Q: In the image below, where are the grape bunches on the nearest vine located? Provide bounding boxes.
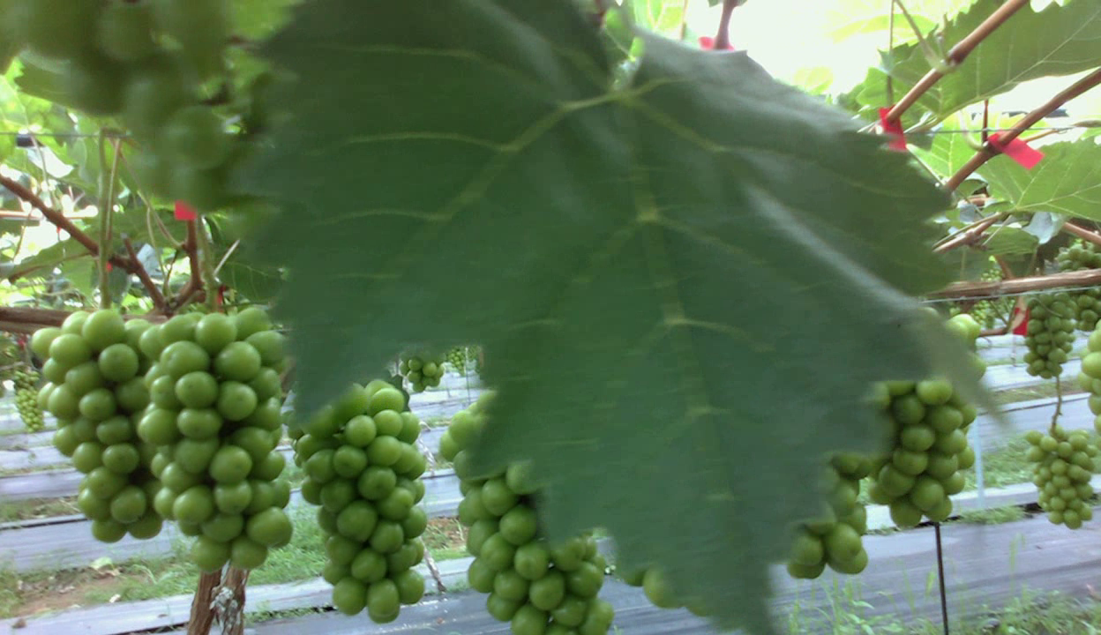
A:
[441,392,615,633]
[135,306,291,571]
[296,377,427,623]
[29,310,162,544]
[869,313,985,528]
